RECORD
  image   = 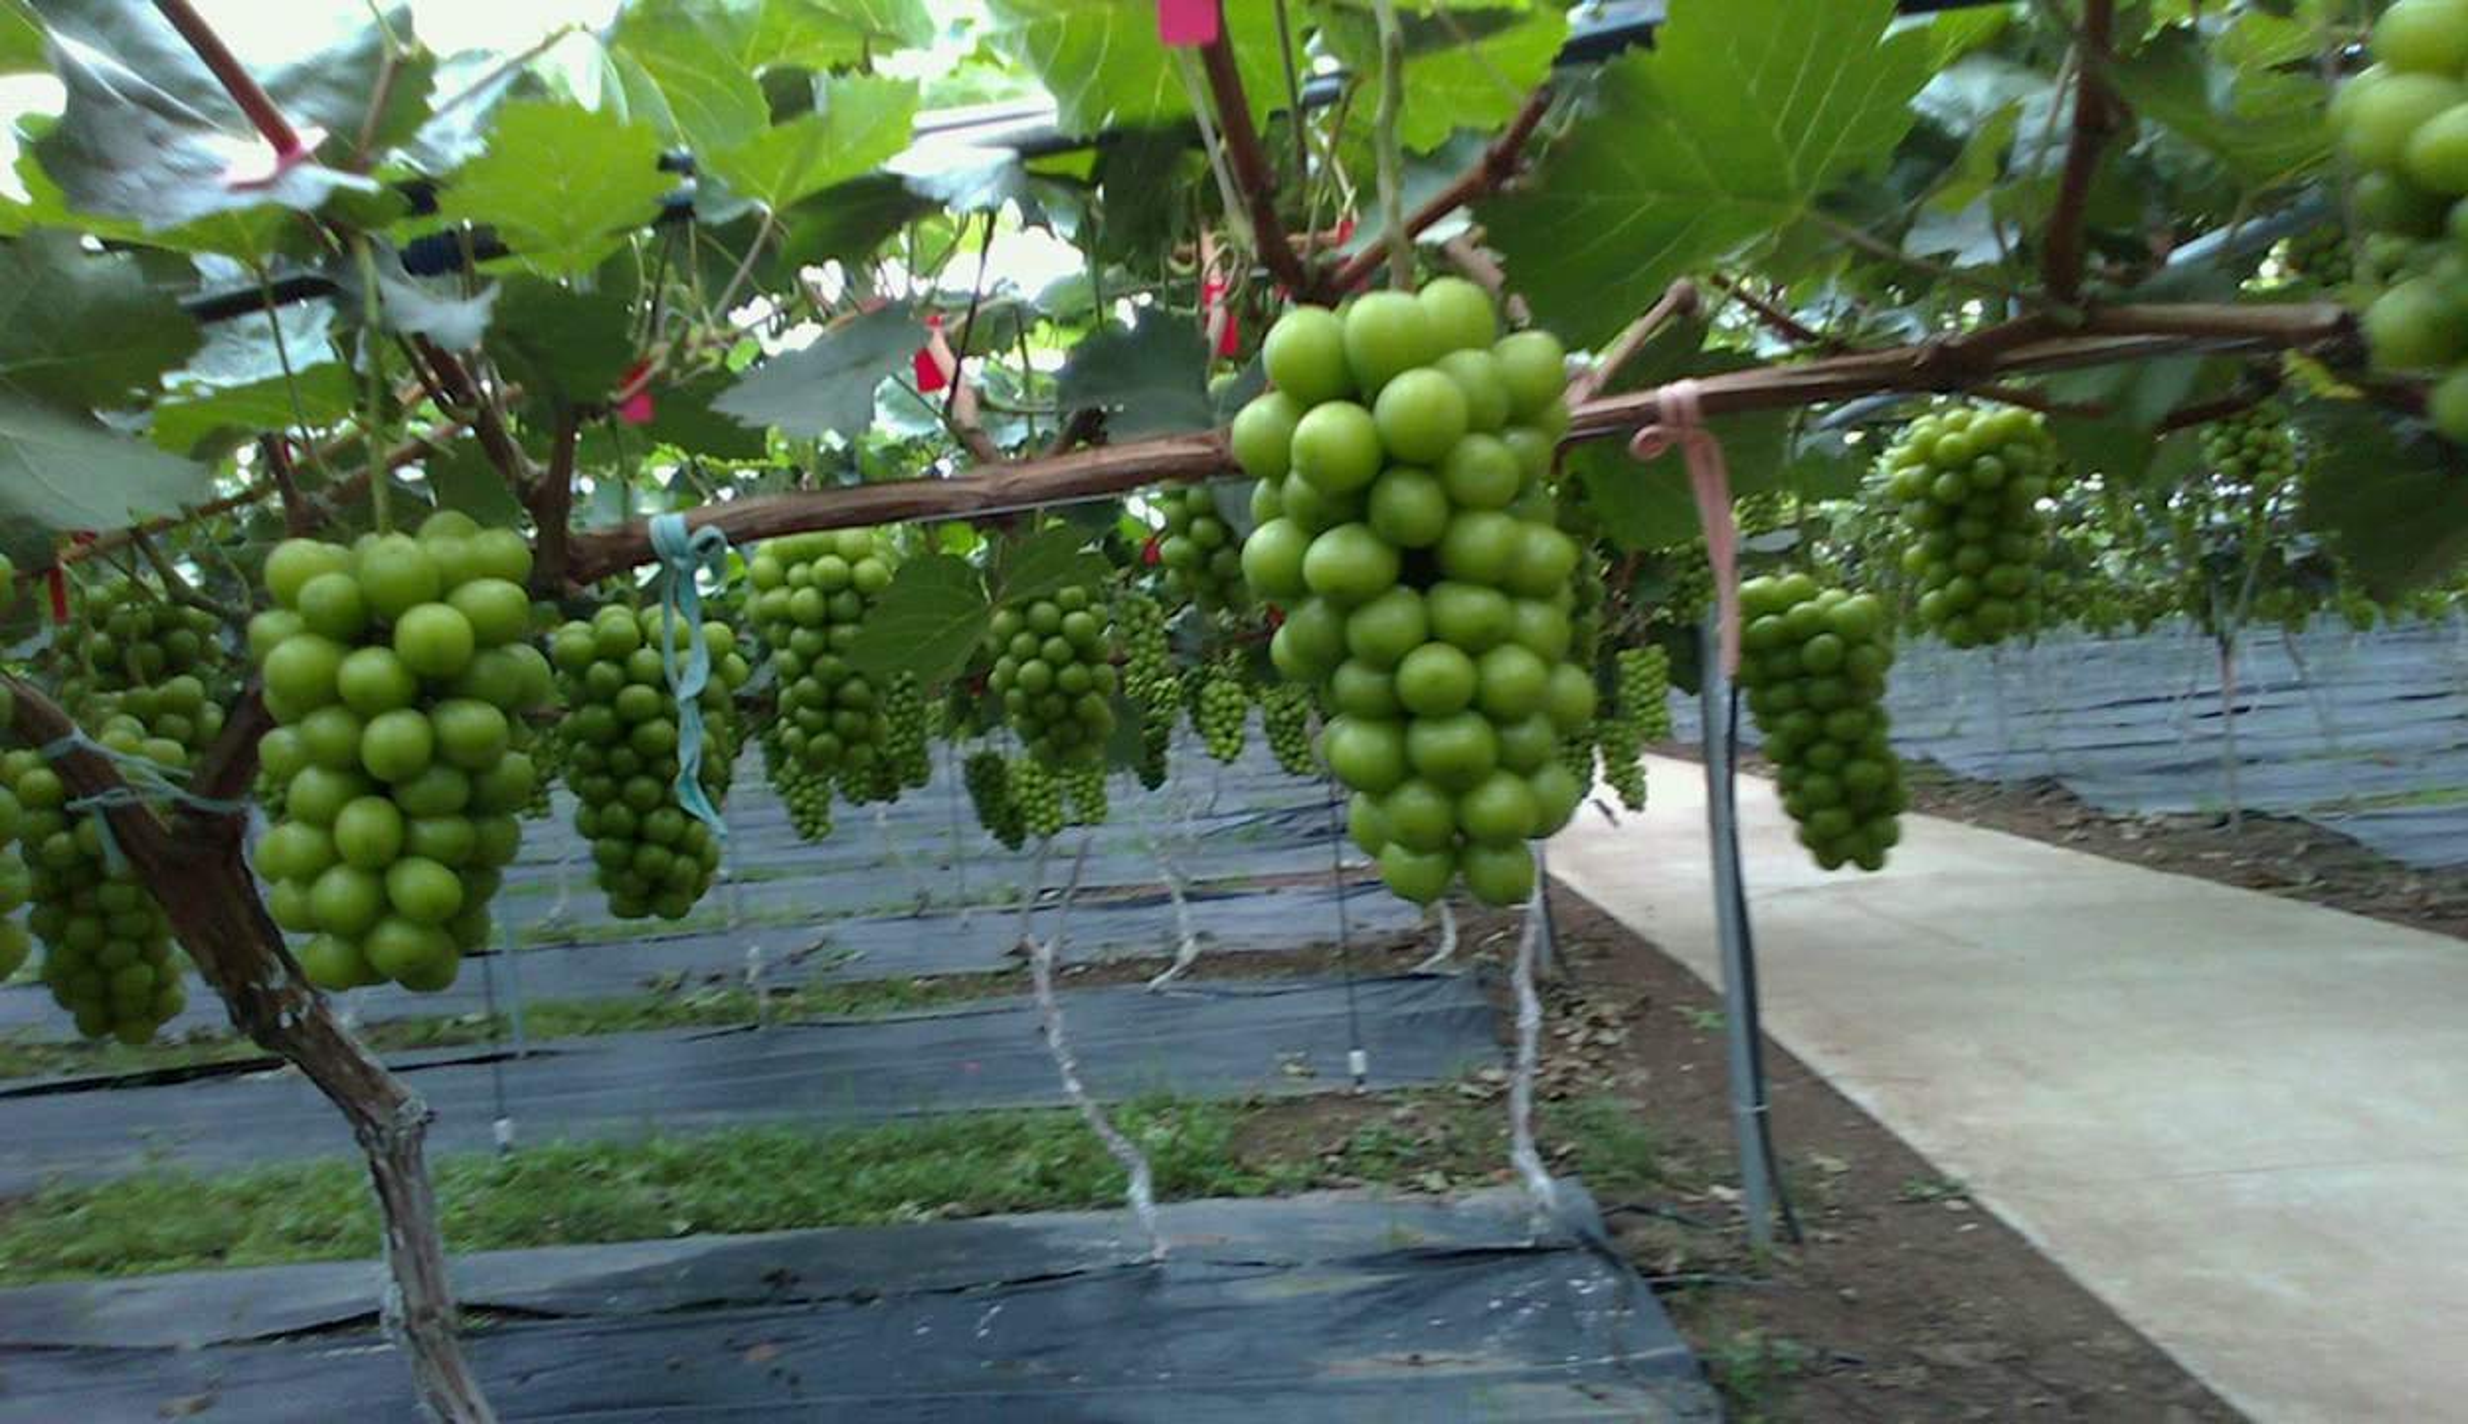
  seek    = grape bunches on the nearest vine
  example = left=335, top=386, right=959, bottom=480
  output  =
left=1226, top=277, right=1600, bottom=906
left=247, top=508, right=554, bottom=995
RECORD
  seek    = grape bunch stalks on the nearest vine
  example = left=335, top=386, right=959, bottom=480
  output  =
left=1370, top=2, right=1412, bottom=289
left=342, top=231, right=394, bottom=536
